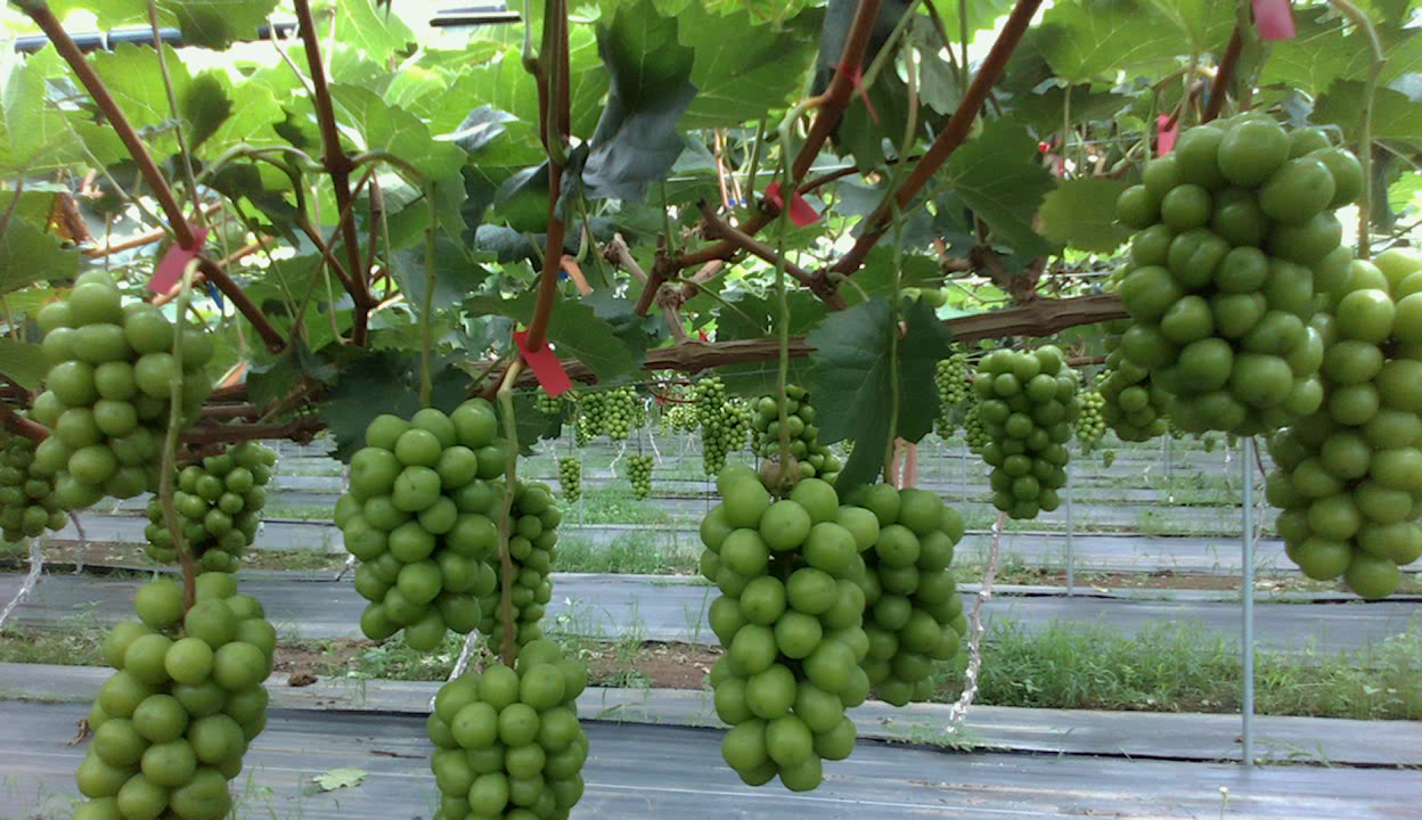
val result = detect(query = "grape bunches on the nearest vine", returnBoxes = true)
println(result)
[333,397,508,653]
[1265,246,1421,599]
[1113,110,1362,437]
[32,269,213,511]
[71,572,278,818]
[844,481,967,707]
[425,639,588,819]
[698,453,878,793]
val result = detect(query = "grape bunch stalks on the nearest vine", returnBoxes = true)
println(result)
[158,259,201,615]
[496,354,525,669]
[1327,0,1389,261]
[1234,0,1258,112]
[775,96,824,499]
[352,149,436,409]
[883,192,902,486]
